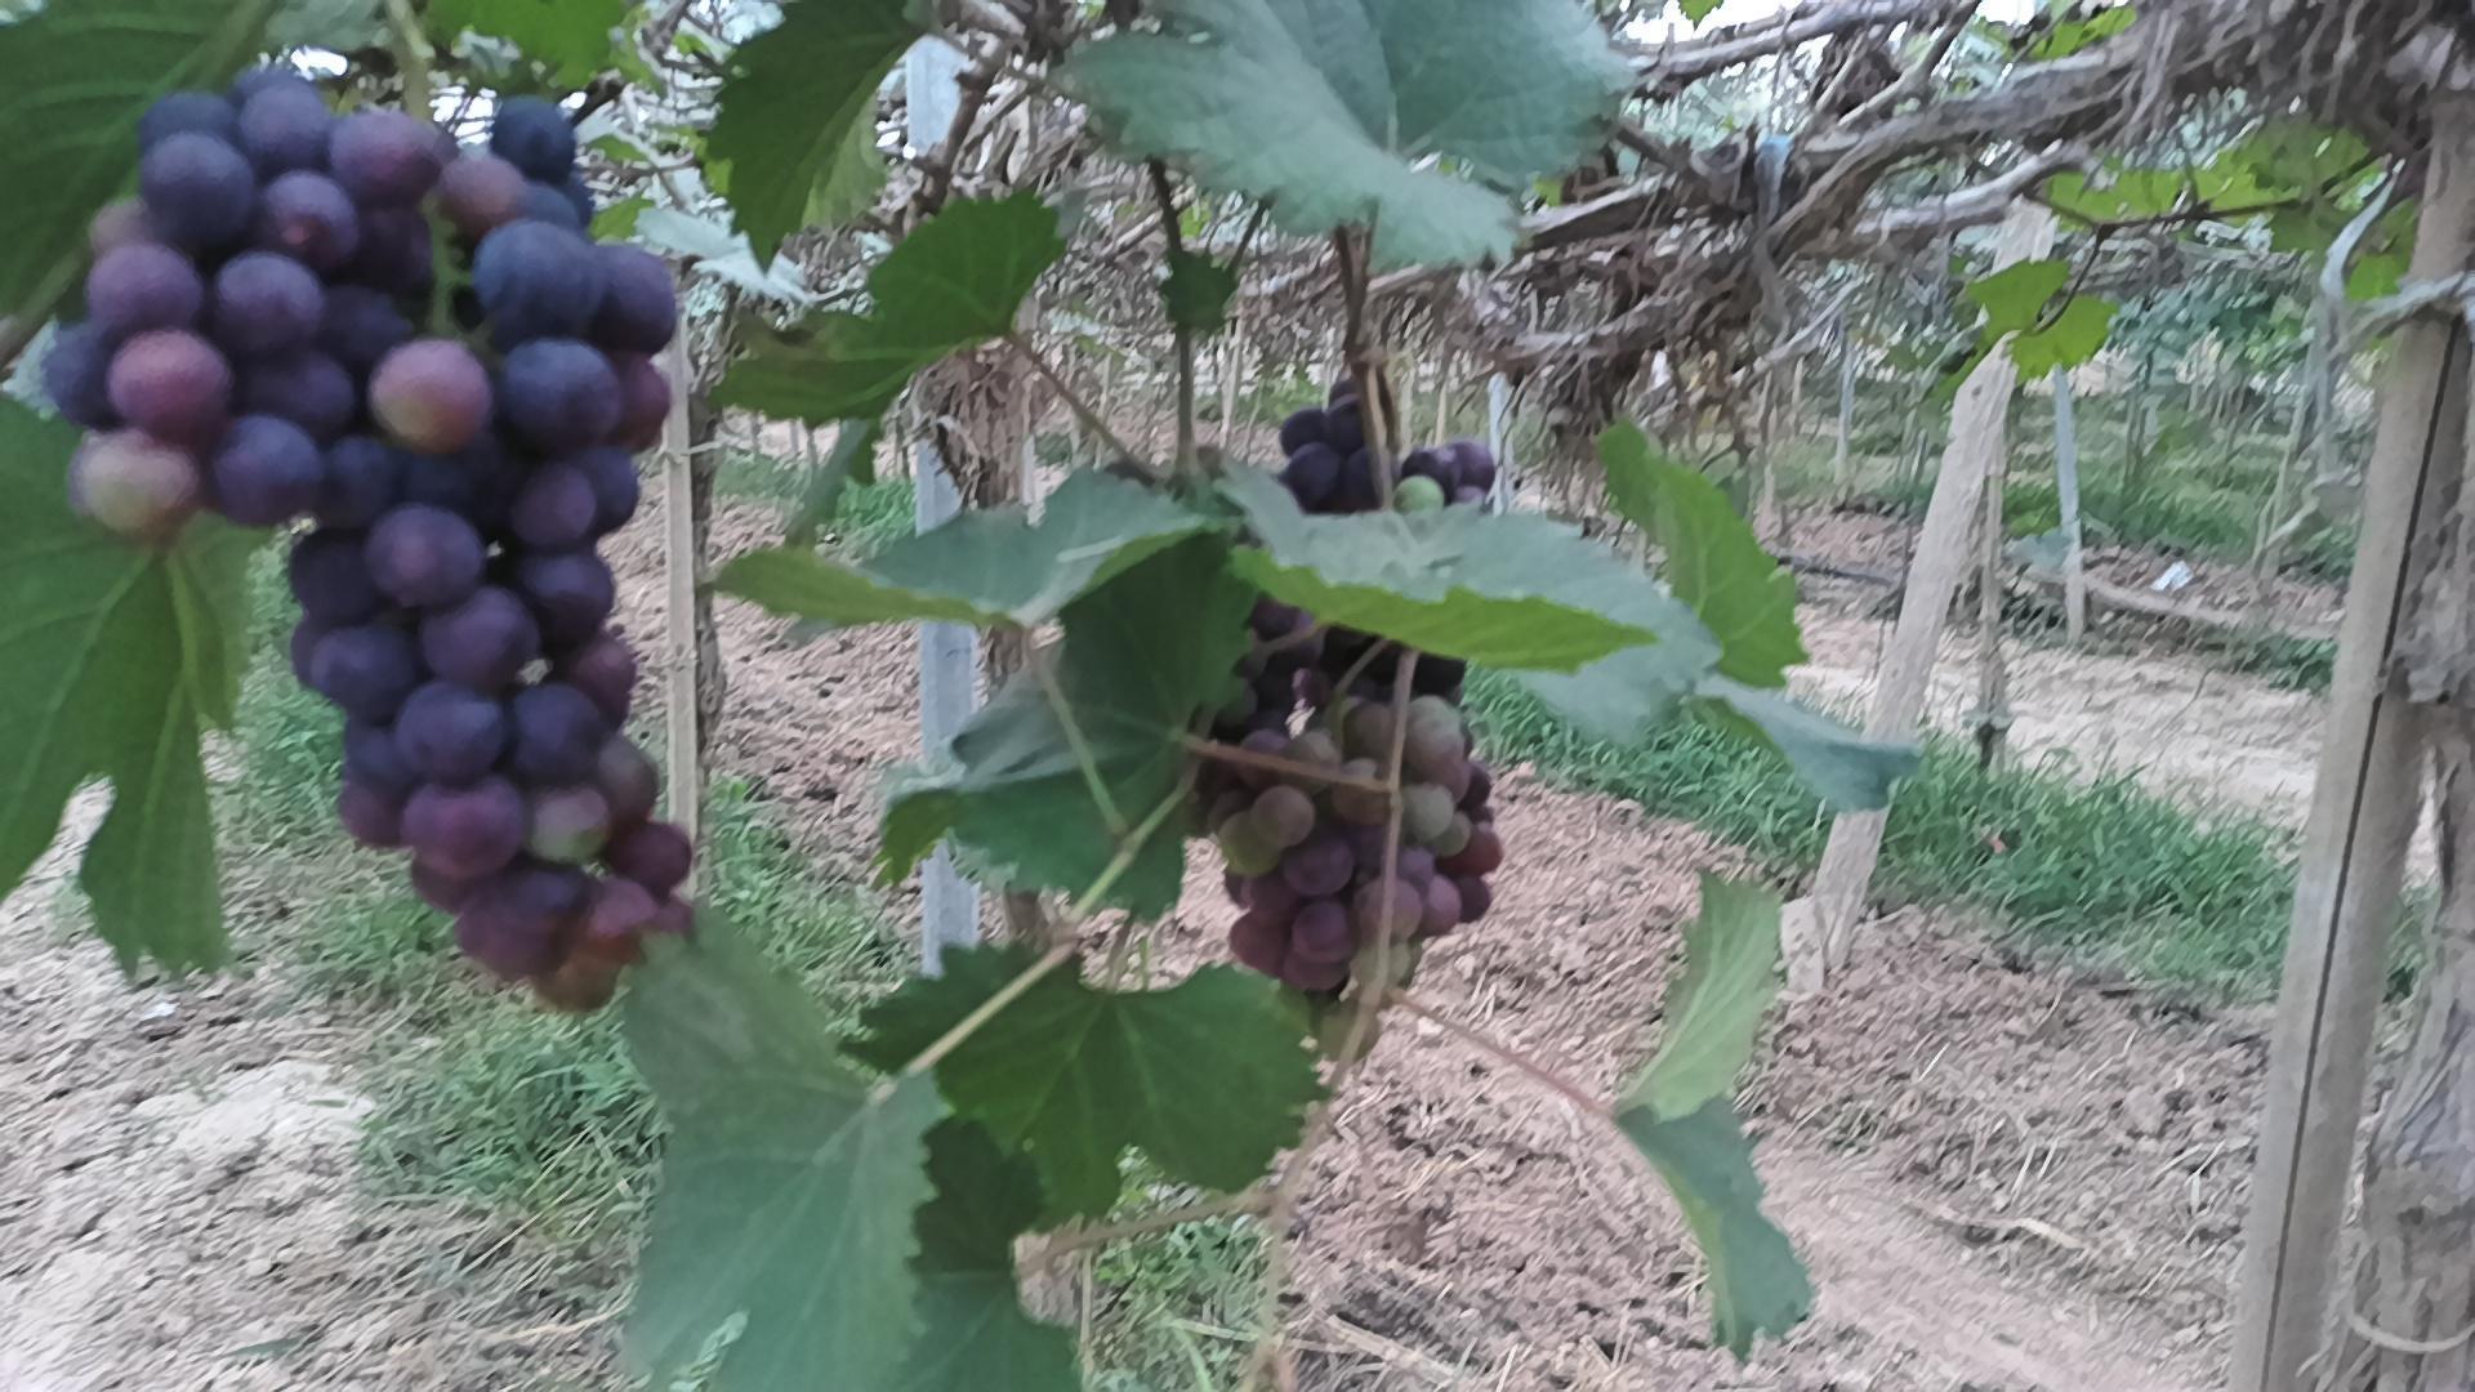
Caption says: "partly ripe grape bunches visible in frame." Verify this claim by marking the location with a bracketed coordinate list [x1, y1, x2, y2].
[1189, 383, 1503, 1067]
[45, 70, 691, 1010]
